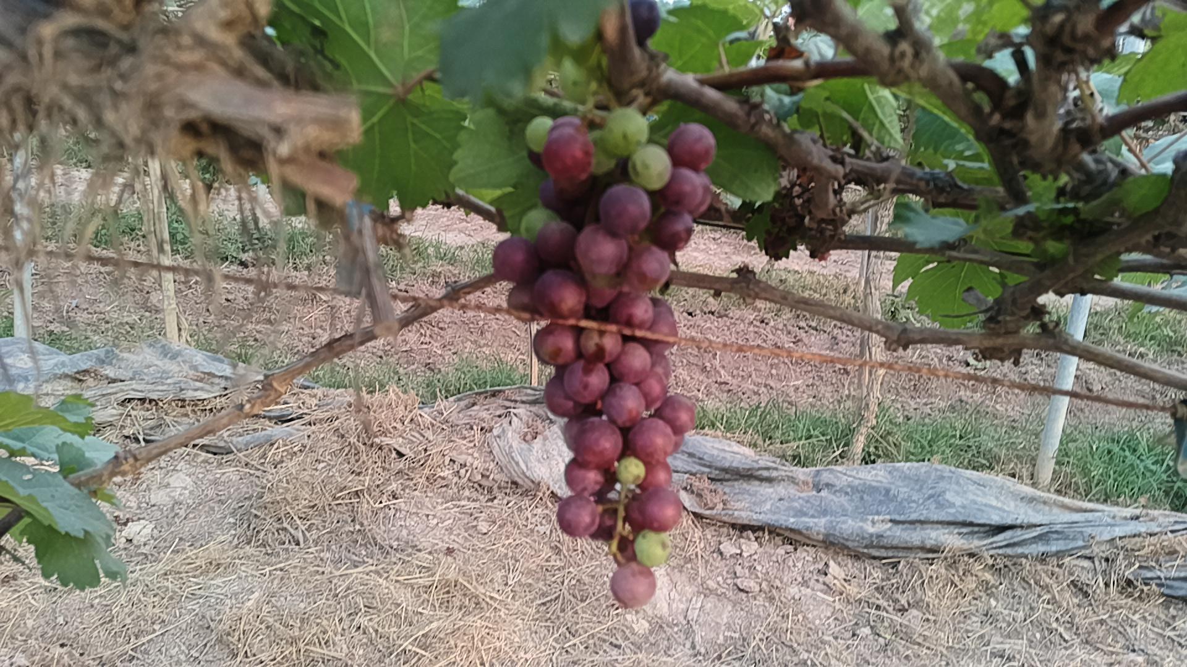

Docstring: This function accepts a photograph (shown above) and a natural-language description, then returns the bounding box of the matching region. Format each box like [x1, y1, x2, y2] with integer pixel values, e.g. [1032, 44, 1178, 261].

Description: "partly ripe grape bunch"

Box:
[493, 0, 715, 608]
